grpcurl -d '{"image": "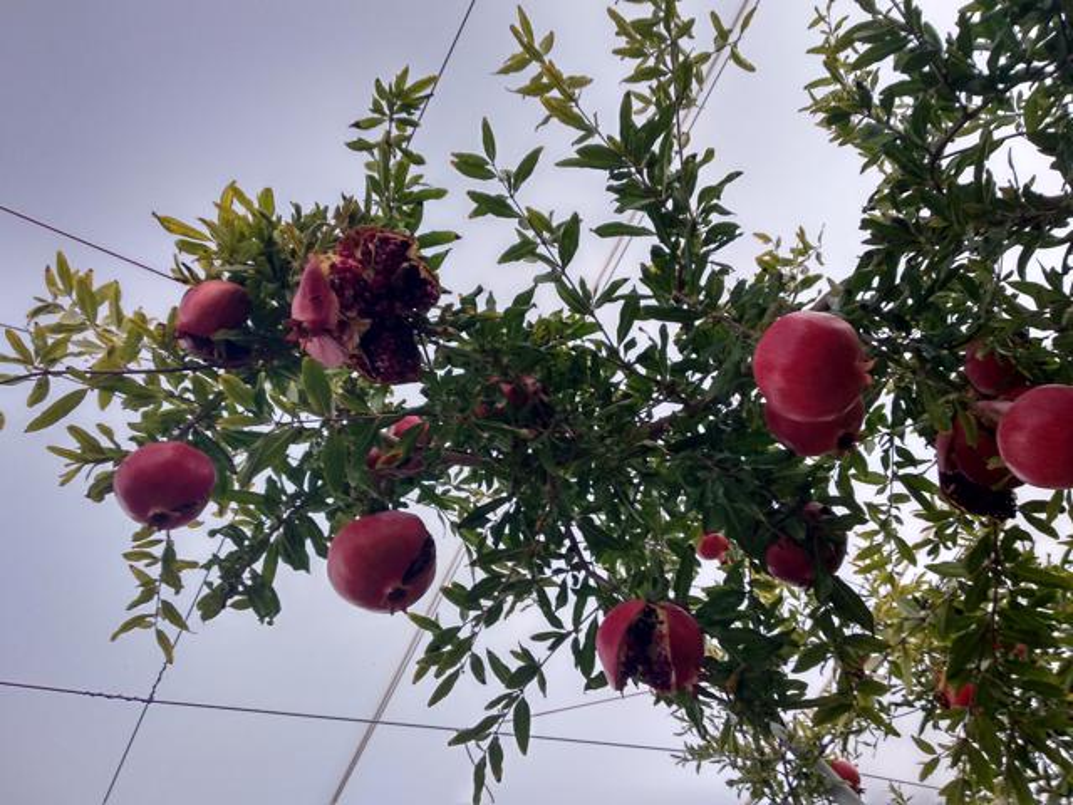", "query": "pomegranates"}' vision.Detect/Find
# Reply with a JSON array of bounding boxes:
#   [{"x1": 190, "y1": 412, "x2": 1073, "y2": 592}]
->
[
  {"x1": 937, "y1": 386, "x2": 1041, "y2": 520},
  {"x1": 998, "y1": 382, "x2": 1073, "y2": 490},
  {"x1": 173, "y1": 278, "x2": 258, "y2": 371},
  {"x1": 114, "y1": 439, "x2": 215, "y2": 533},
  {"x1": 753, "y1": 310, "x2": 877, "y2": 424},
  {"x1": 766, "y1": 500, "x2": 825, "y2": 584},
  {"x1": 964, "y1": 340, "x2": 1021, "y2": 394},
  {"x1": 327, "y1": 508, "x2": 436, "y2": 615},
  {"x1": 694, "y1": 533, "x2": 728, "y2": 567},
  {"x1": 365, "y1": 446, "x2": 399, "y2": 471},
  {"x1": 830, "y1": 758, "x2": 862, "y2": 793},
  {"x1": 476, "y1": 374, "x2": 545, "y2": 416},
  {"x1": 595, "y1": 595, "x2": 706, "y2": 699},
  {"x1": 932, "y1": 681, "x2": 972, "y2": 713},
  {"x1": 287, "y1": 223, "x2": 436, "y2": 382},
  {"x1": 763, "y1": 396, "x2": 865, "y2": 463},
  {"x1": 386, "y1": 414, "x2": 431, "y2": 444}
]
